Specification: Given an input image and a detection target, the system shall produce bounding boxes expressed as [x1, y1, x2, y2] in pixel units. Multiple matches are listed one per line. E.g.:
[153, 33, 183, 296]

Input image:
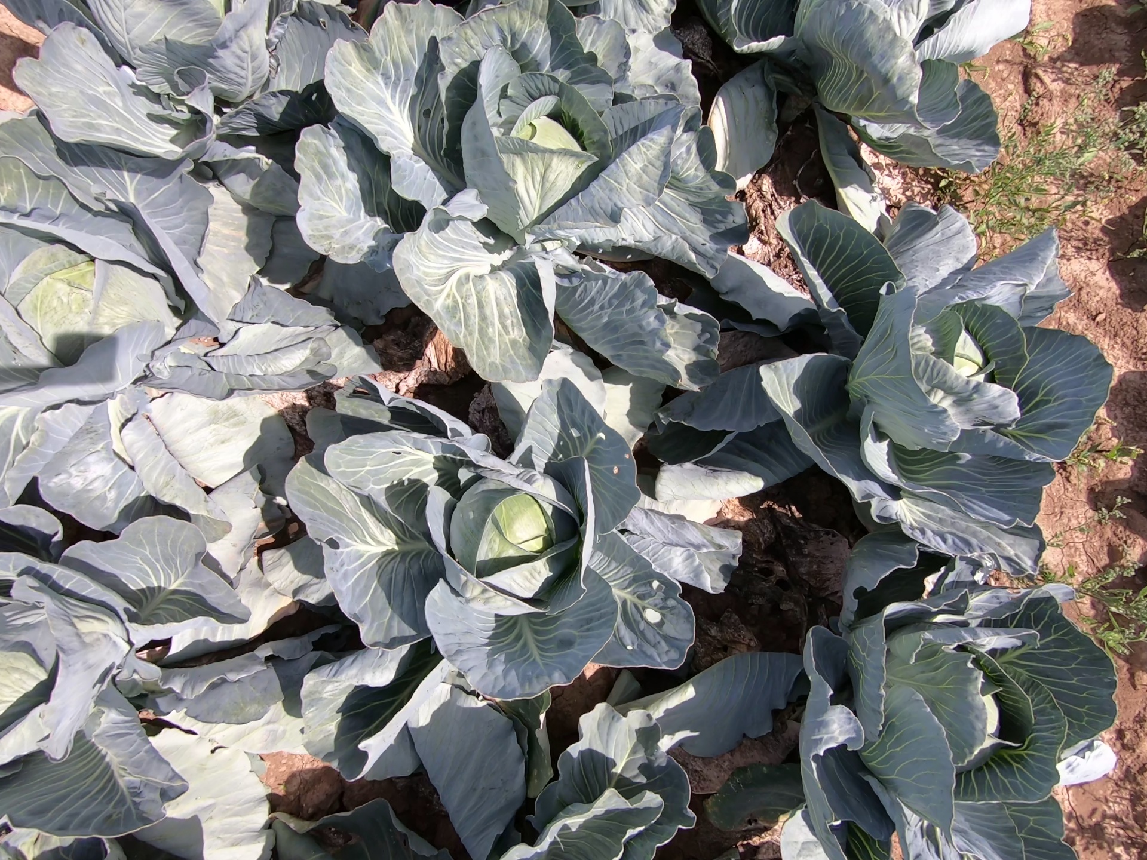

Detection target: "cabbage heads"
[88, 2, 234, 80]
[449, 467, 582, 606]
[879, 637, 1005, 774]
[880, 321, 995, 428]
[2, 236, 173, 377]
[1, 599, 119, 761]
[475, 110, 589, 234]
